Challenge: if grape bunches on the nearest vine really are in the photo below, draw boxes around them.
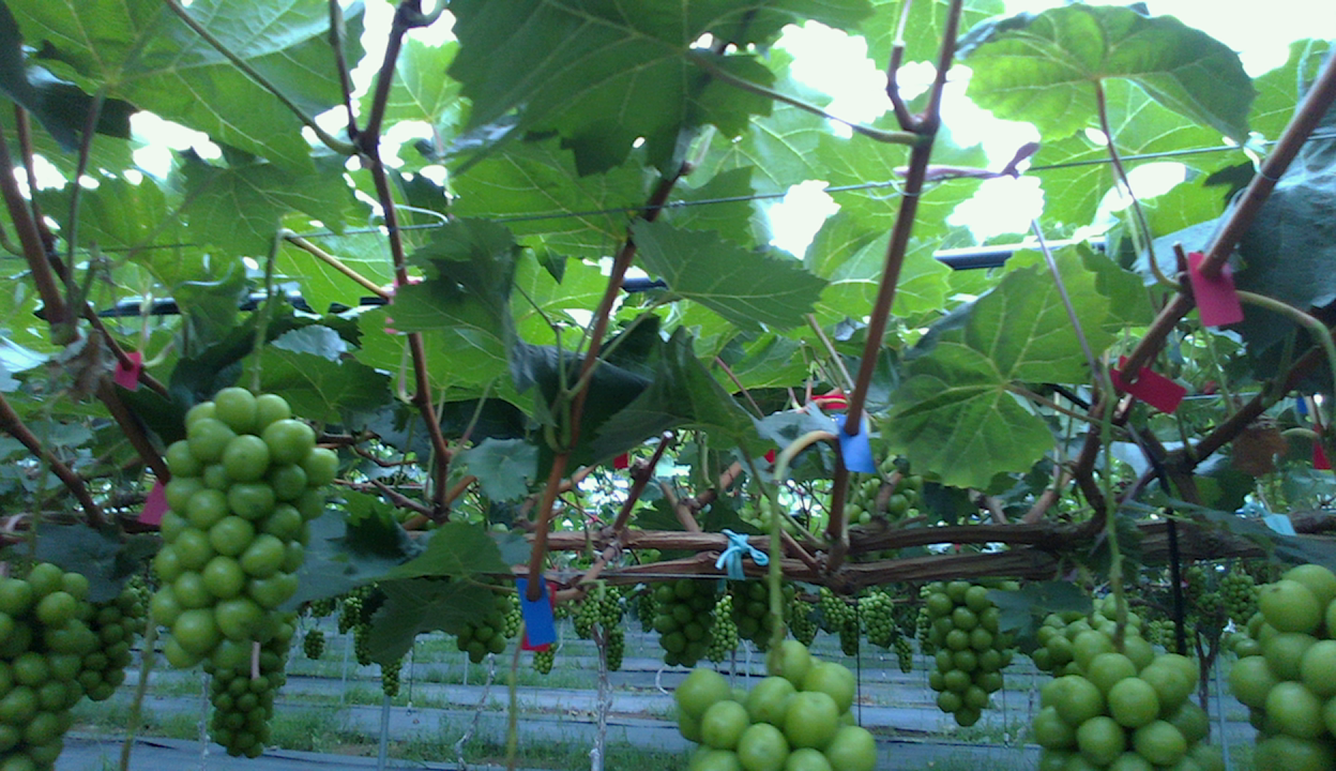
[0,562,89,770]
[675,639,876,770]
[1034,631,1221,770]
[151,385,338,668]
[1225,563,1335,770]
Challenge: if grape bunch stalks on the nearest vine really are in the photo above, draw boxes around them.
[243,228,297,398]
[1100,351,1126,653]
[21,387,71,579]
[768,432,838,677]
